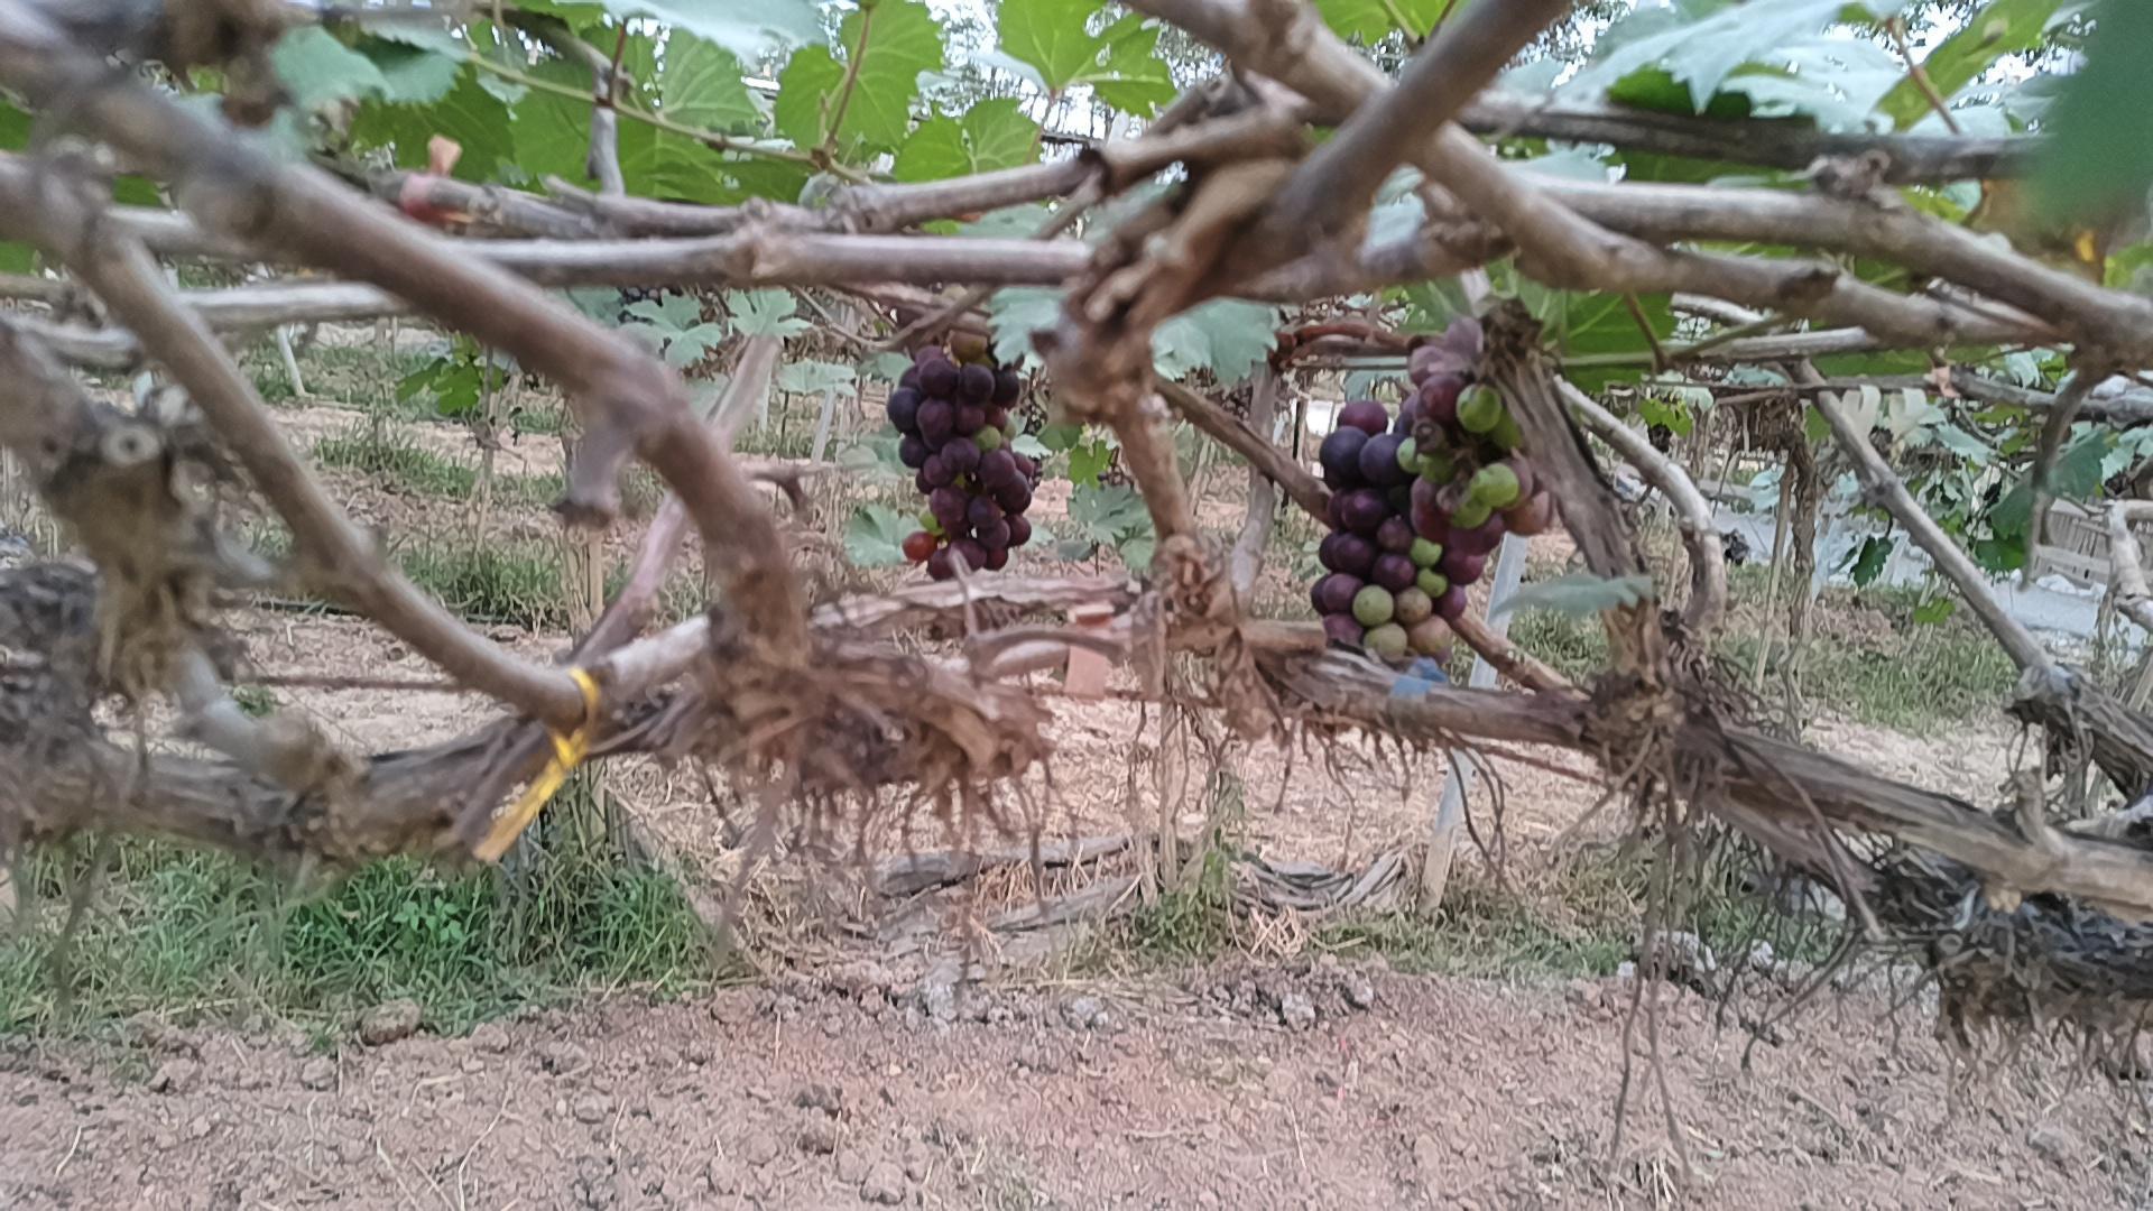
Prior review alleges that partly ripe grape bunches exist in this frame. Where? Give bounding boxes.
[887,345,1039,580]
[1311,320,1553,660]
